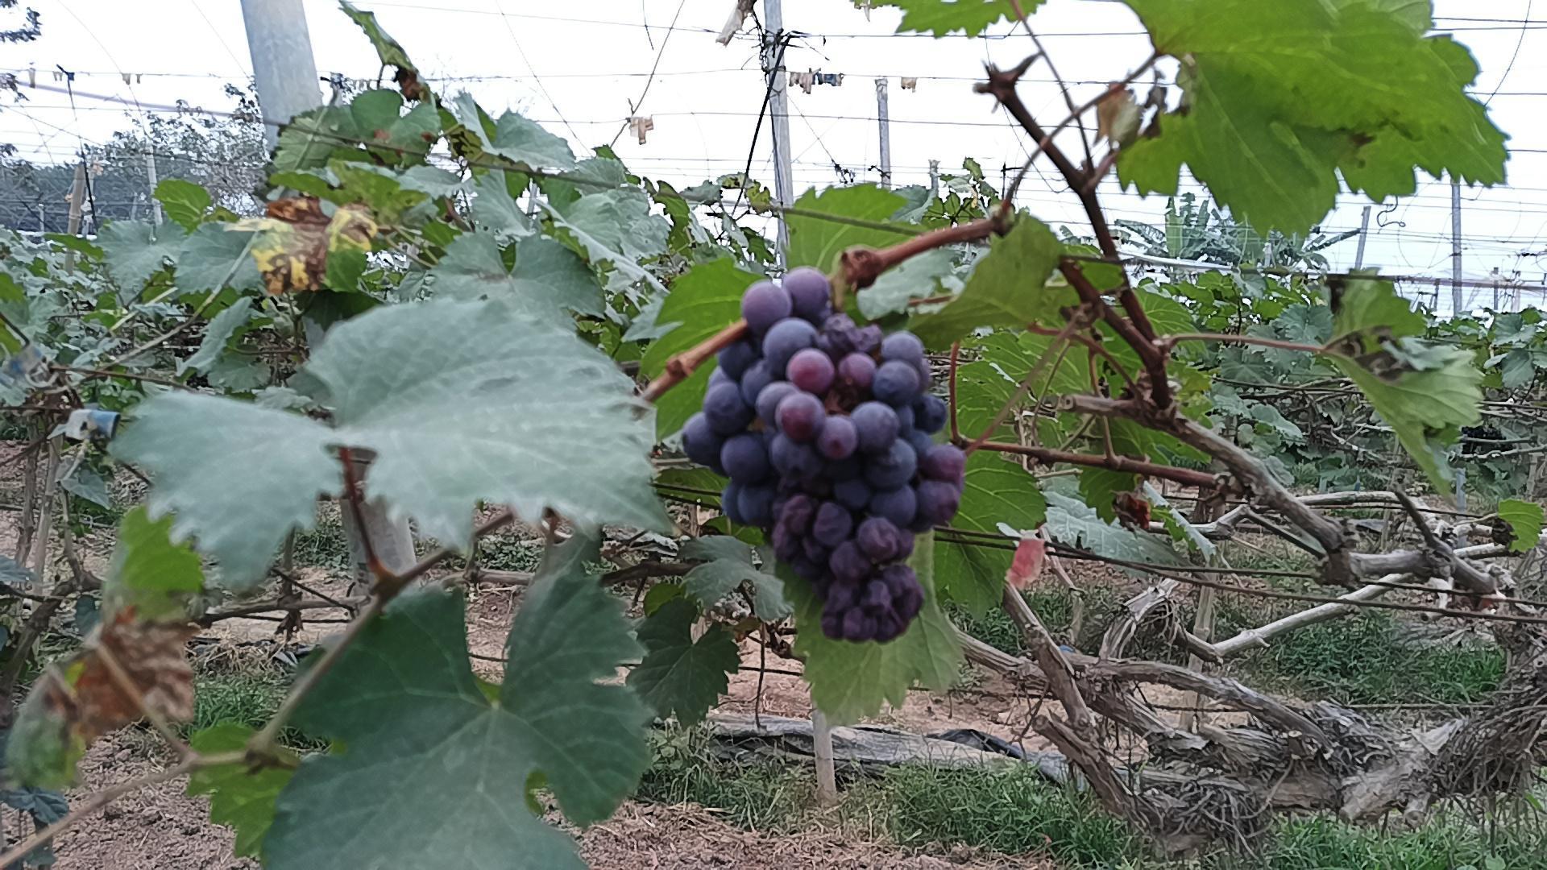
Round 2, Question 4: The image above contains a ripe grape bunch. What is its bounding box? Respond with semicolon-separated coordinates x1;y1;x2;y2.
681;269;965;642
